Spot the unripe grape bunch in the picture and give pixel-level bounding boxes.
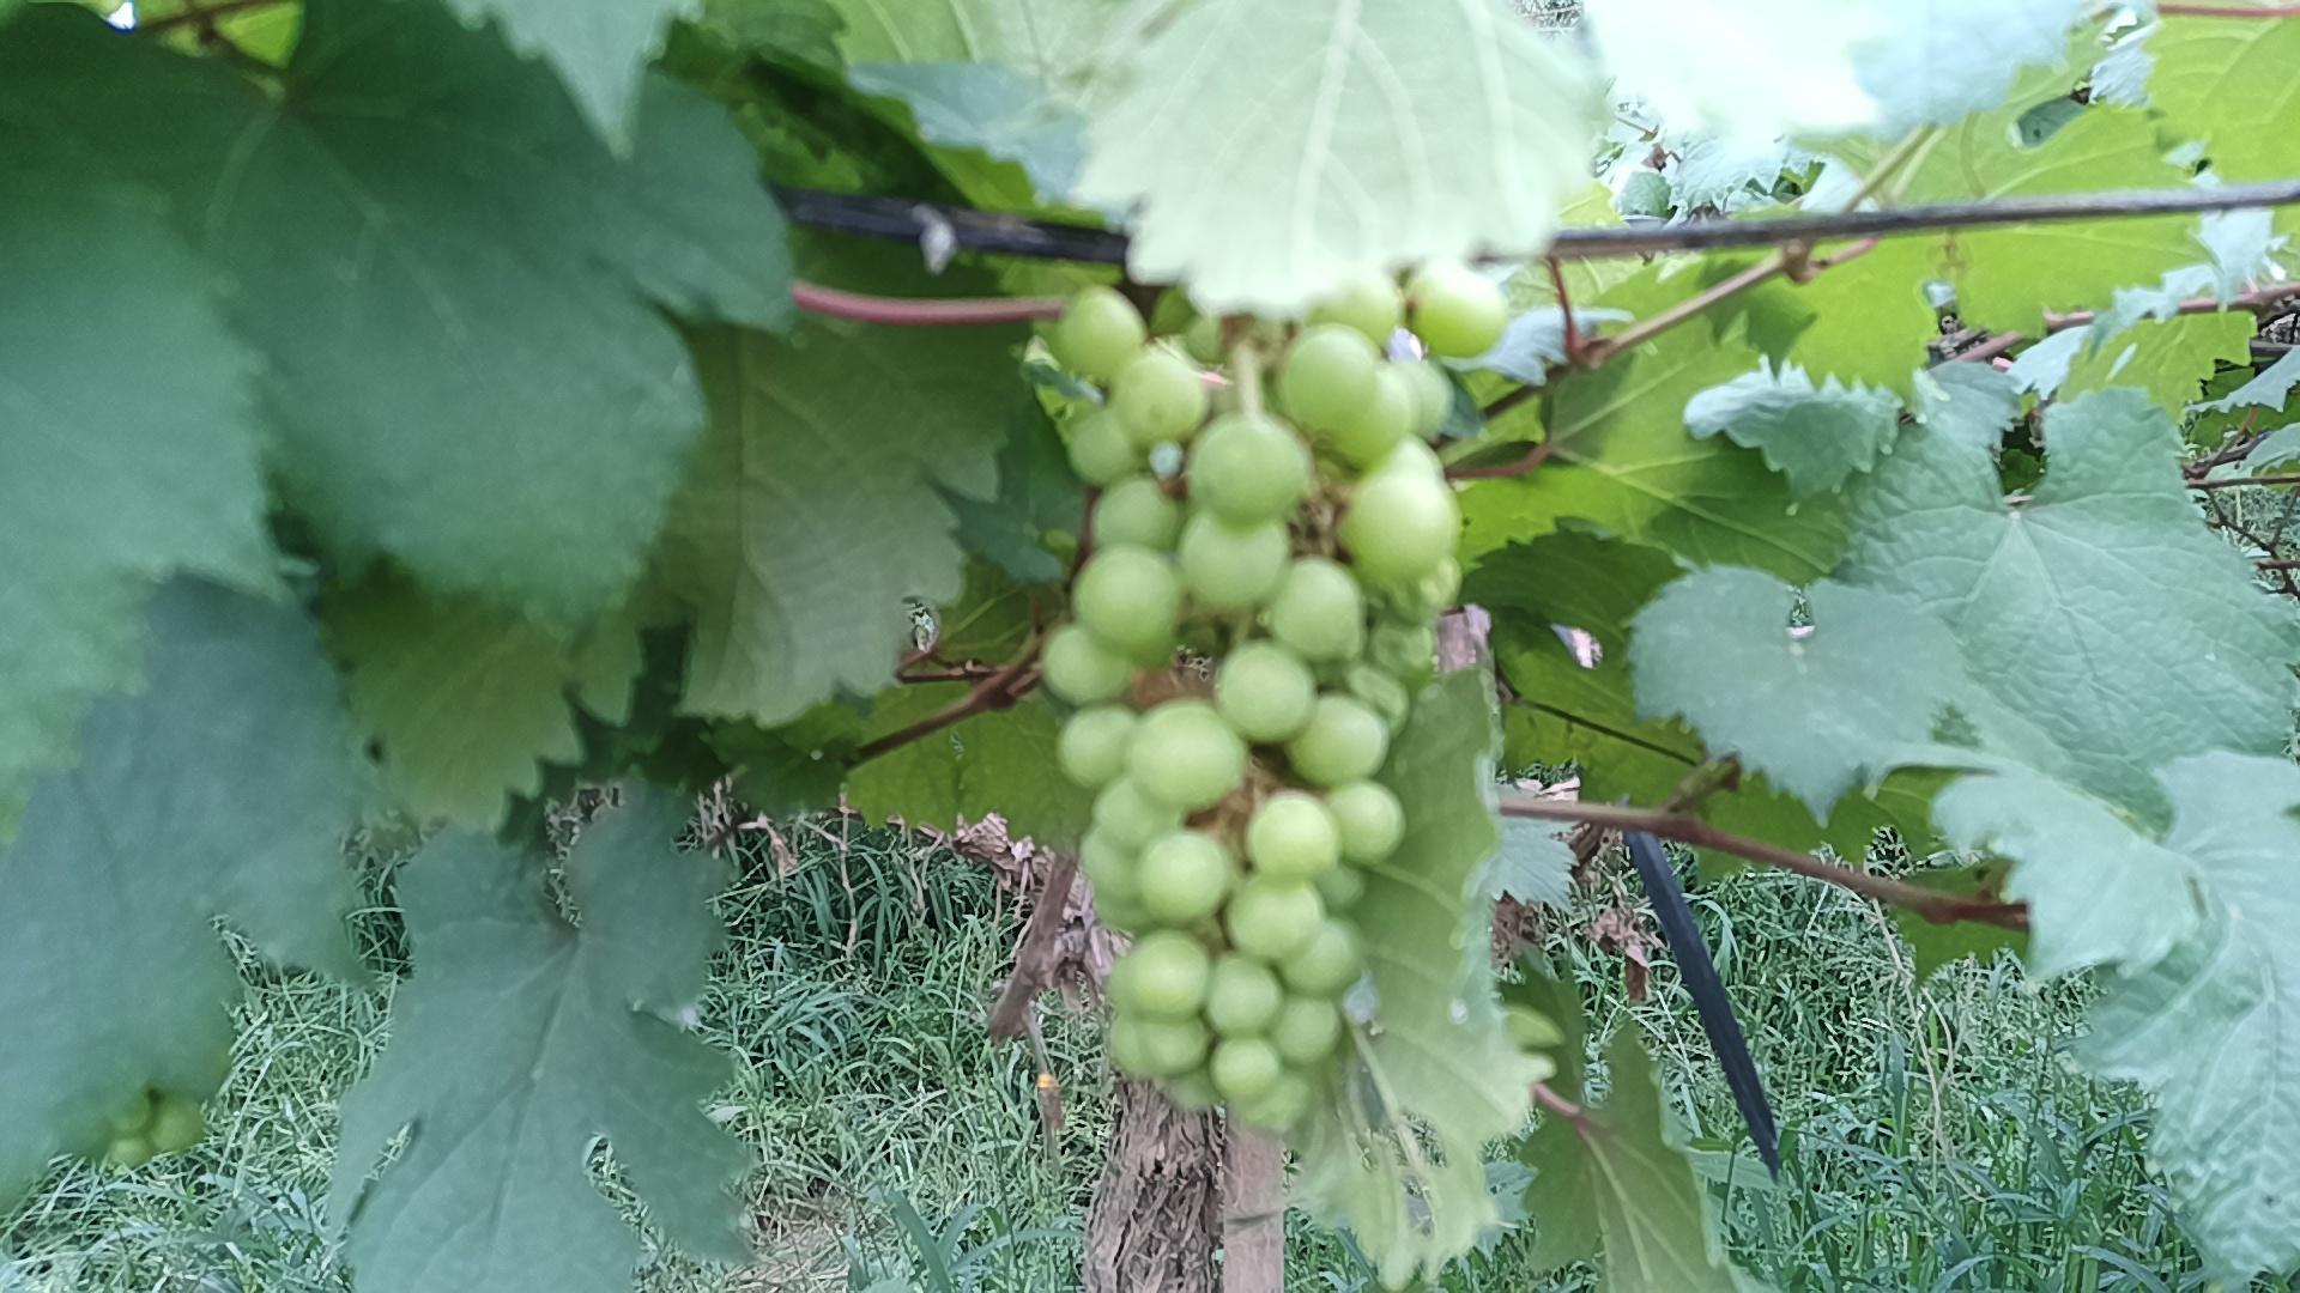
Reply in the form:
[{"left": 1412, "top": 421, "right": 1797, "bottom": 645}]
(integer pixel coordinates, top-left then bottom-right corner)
[{"left": 1040, "top": 255, "right": 1515, "bottom": 1131}]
